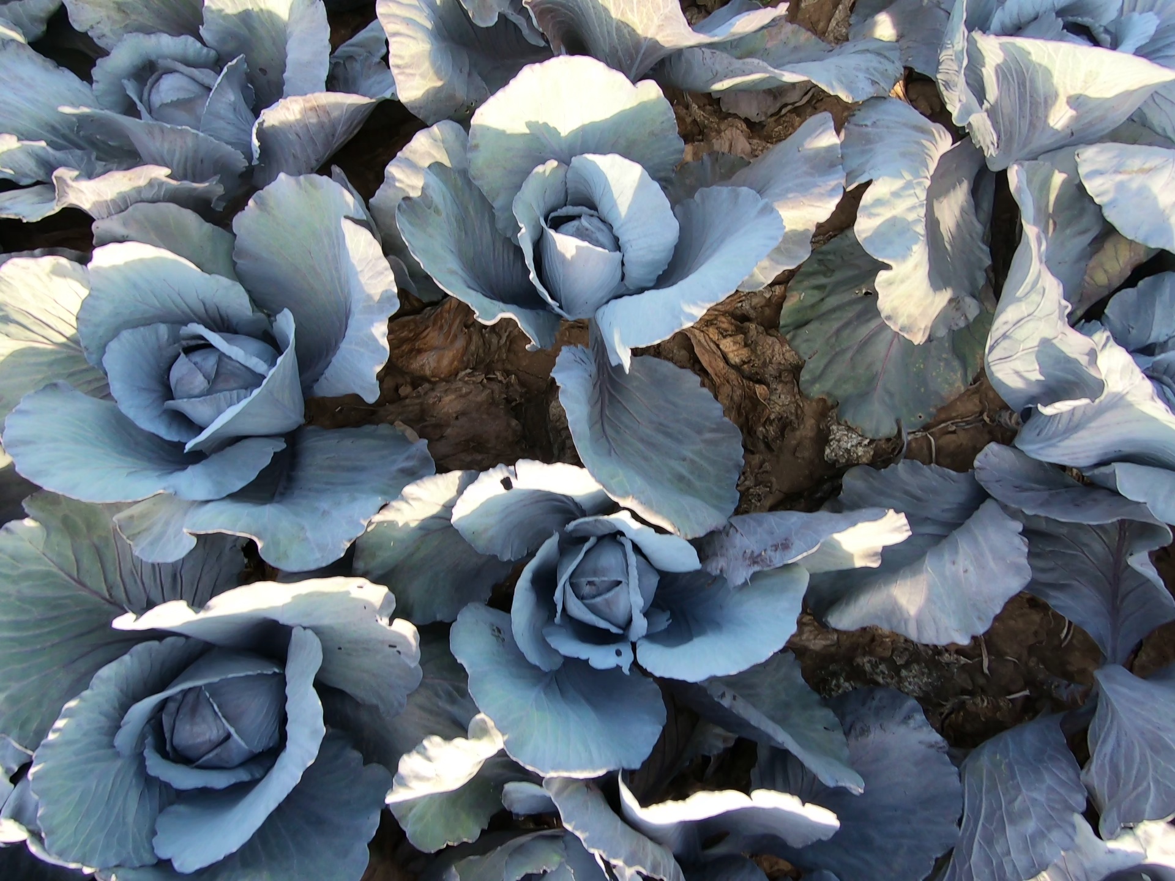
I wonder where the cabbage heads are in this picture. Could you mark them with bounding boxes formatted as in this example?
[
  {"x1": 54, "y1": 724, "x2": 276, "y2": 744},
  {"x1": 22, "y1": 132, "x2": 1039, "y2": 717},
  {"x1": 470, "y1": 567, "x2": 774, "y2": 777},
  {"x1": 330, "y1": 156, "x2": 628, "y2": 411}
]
[
  {"x1": 549, "y1": 217, "x2": 619, "y2": 303},
  {"x1": 146, "y1": 66, "x2": 236, "y2": 154},
  {"x1": 171, "y1": 343, "x2": 271, "y2": 417},
  {"x1": 563, "y1": 545, "x2": 646, "y2": 624},
  {"x1": 1064, "y1": 372, "x2": 1173, "y2": 450},
  {"x1": 166, "y1": 660, "x2": 272, "y2": 762}
]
